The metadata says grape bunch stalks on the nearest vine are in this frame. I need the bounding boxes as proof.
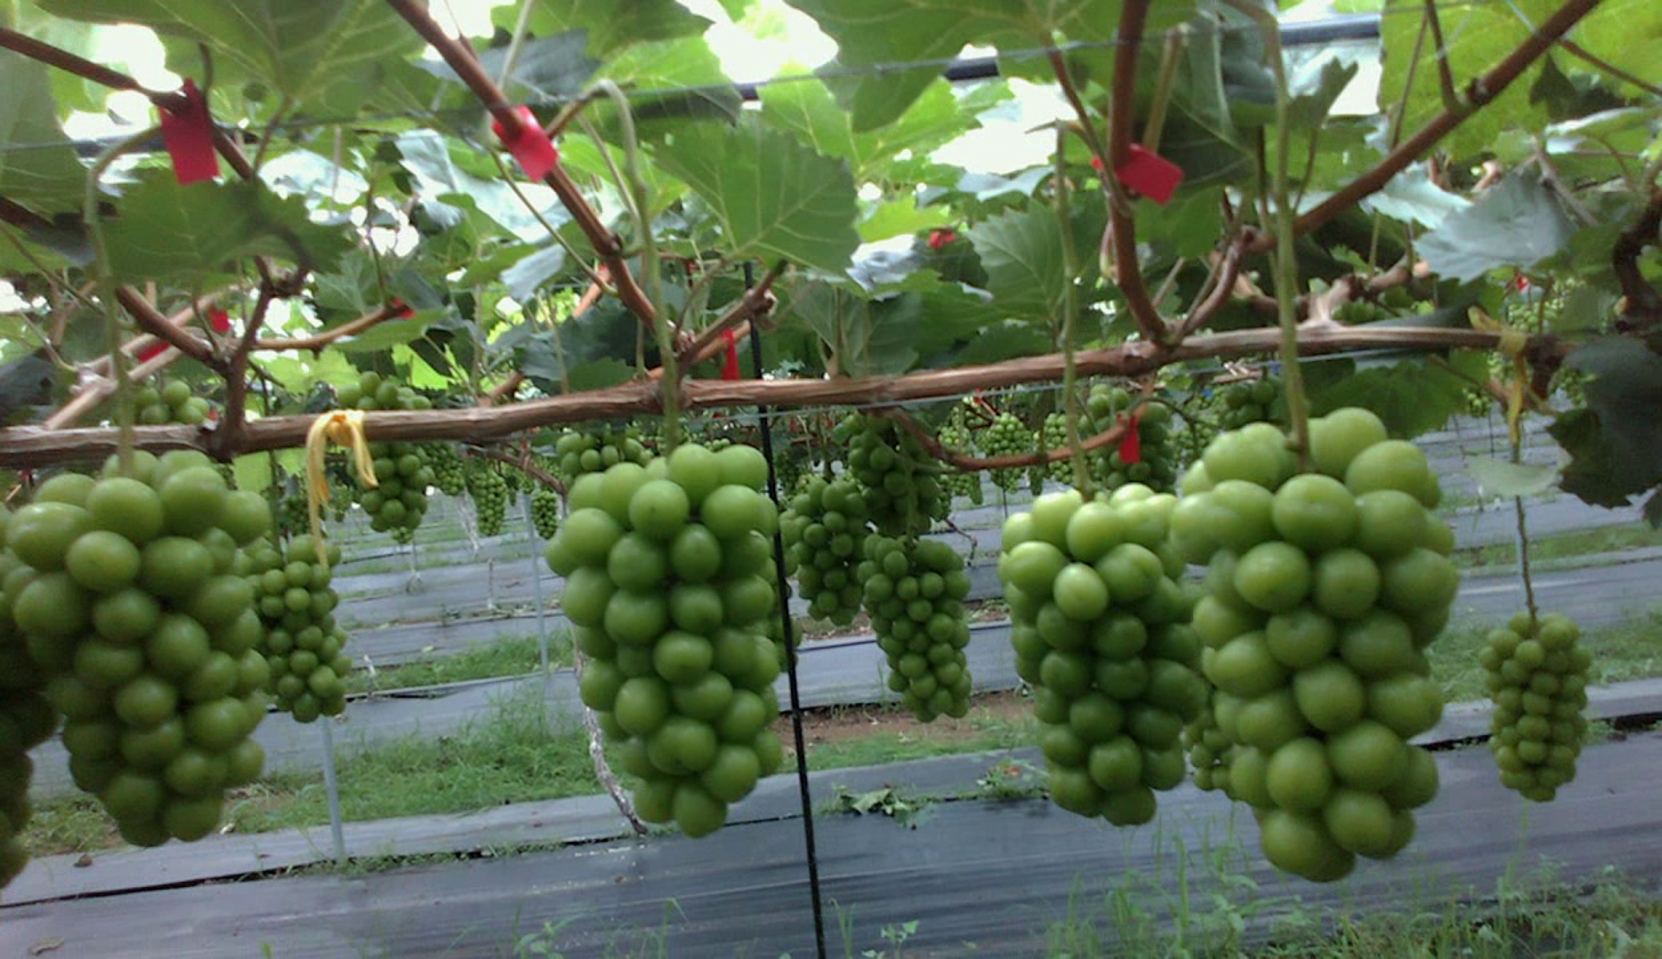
[602,76,678,456]
[83,121,169,477]
[1235,5,1310,469]
[1055,120,1096,497]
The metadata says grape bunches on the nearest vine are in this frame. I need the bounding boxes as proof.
[5,452,270,848]
[1000,482,1205,823]
[1172,410,1457,880]
[543,442,784,835]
